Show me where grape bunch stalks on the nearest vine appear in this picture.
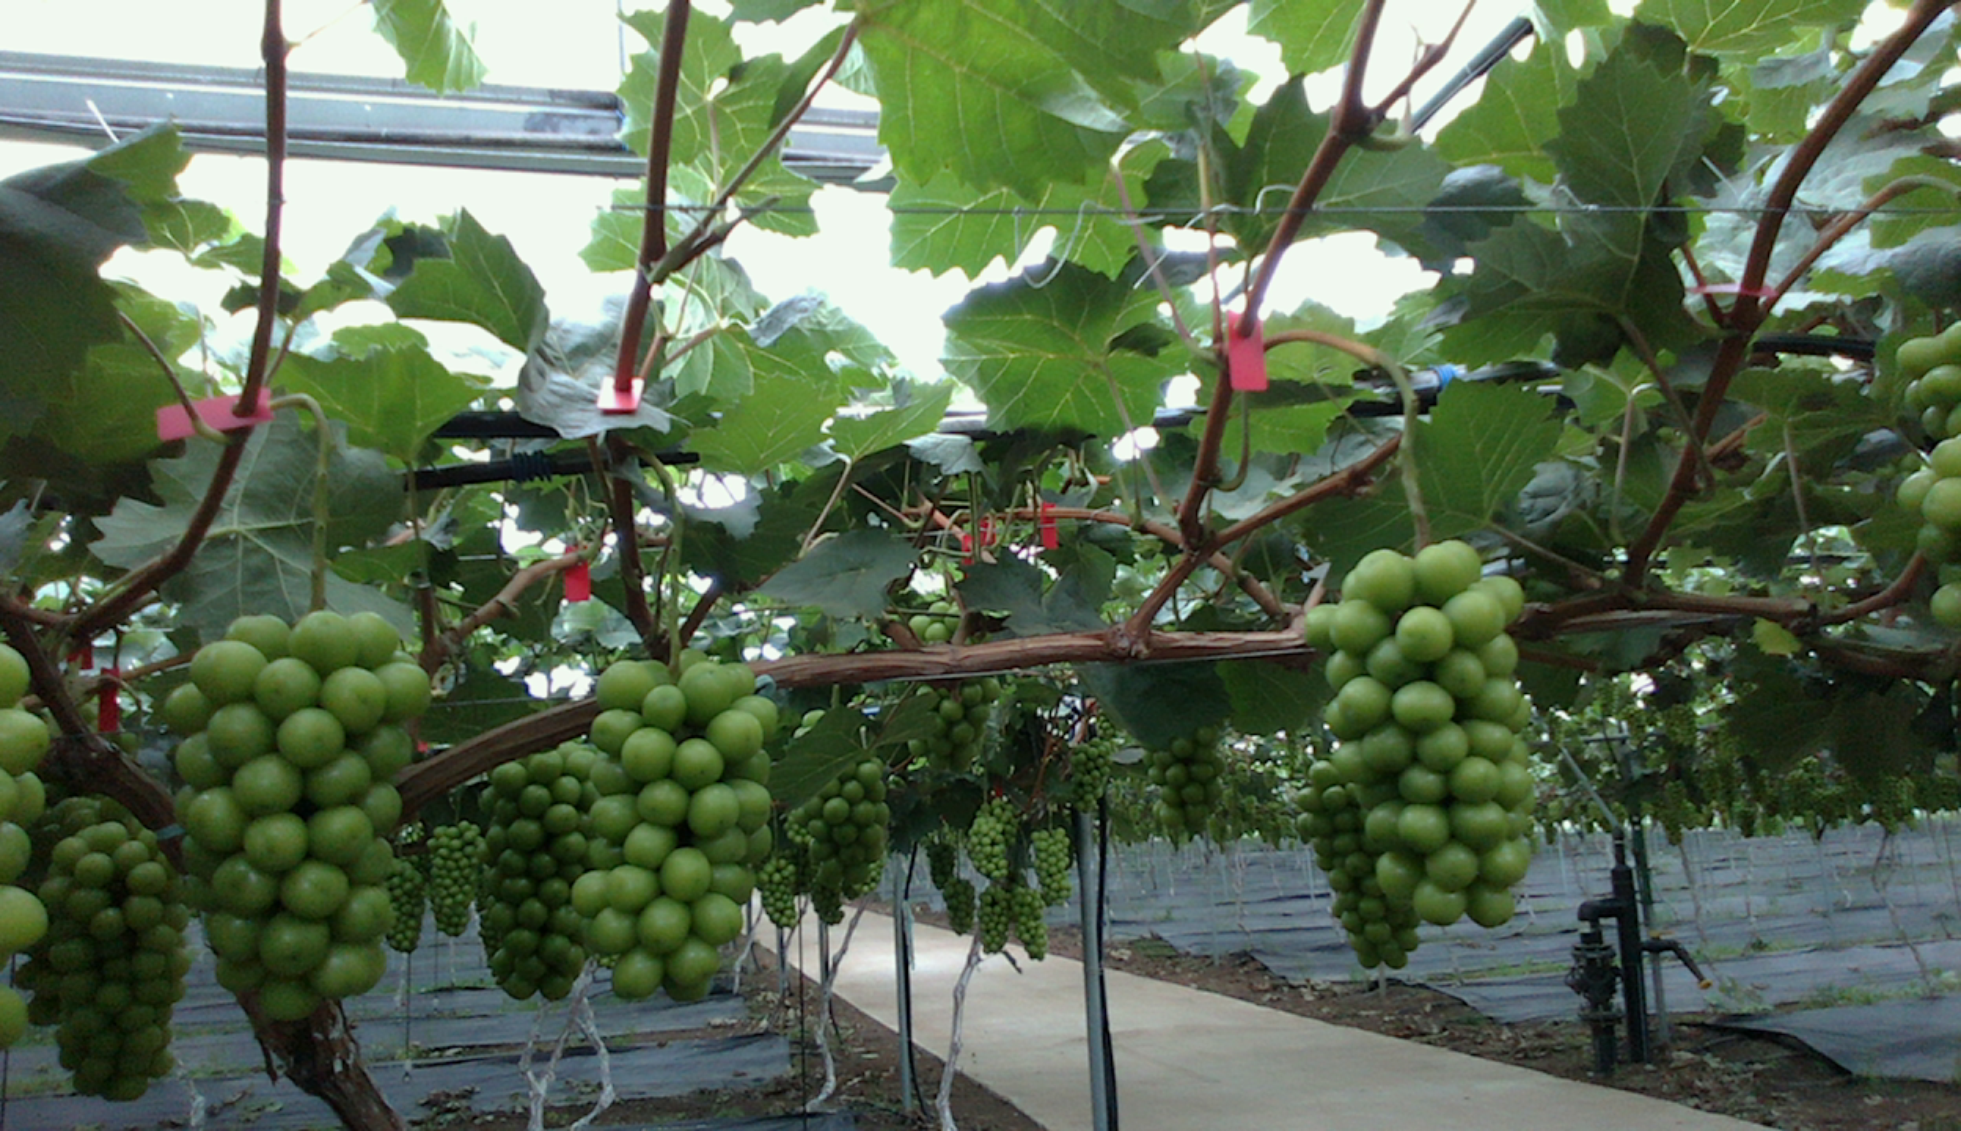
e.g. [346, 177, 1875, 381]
[621, 441, 684, 683]
[1262, 330, 1430, 556]
[267, 394, 333, 613]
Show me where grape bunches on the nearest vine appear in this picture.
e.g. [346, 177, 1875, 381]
[165, 609, 429, 1018]
[575, 647, 778, 1001]
[1897, 319, 1959, 627]
[1304, 542, 1534, 927]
